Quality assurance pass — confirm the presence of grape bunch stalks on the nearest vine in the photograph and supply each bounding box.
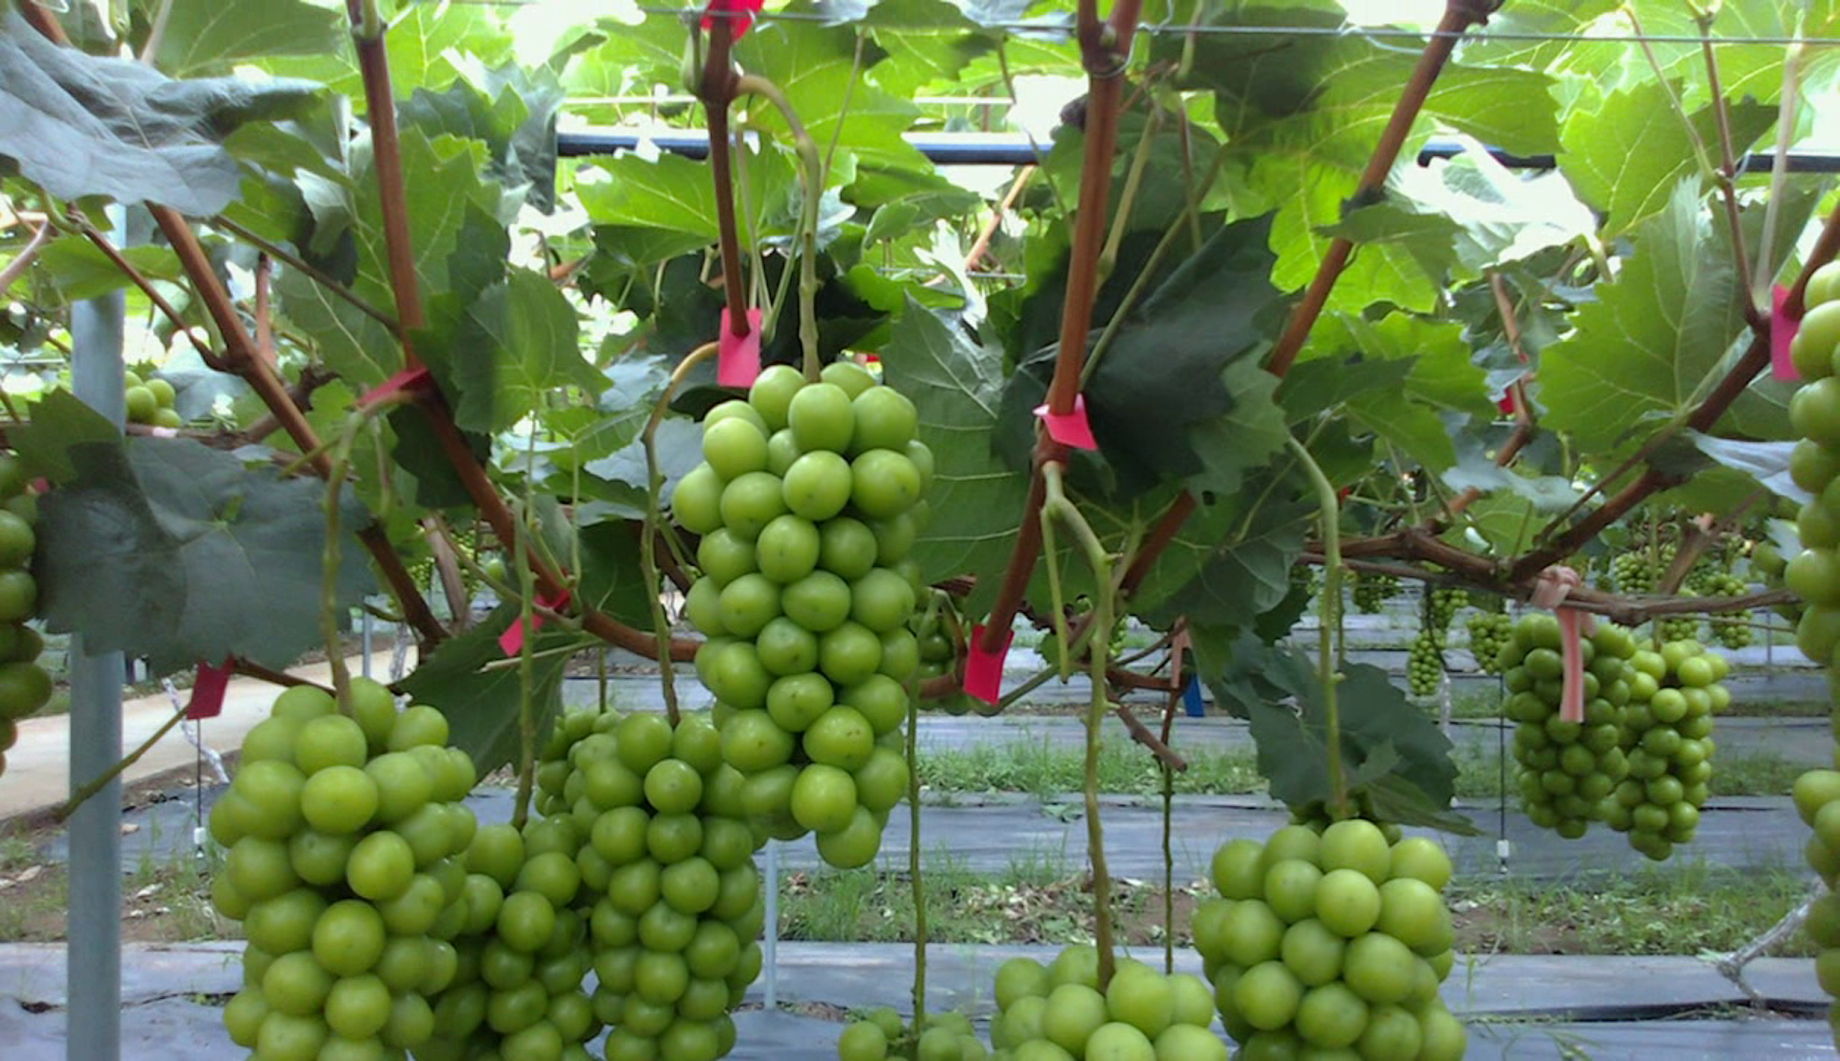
[1044,463,1116,995]
[317,389,413,718]
[1284,438,1351,821]
[733,75,821,385]
[907,591,967,1060]
[641,340,718,731]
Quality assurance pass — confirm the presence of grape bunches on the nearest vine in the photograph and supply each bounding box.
[837,1005,989,1060]
[565,710,773,1060]
[410,812,603,1060]
[989,945,1228,1060]
[1793,768,1839,1026]
[1782,261,1839,663]
[671,363,935,869]
[0,457,55,750]
[1190,818,1467,1060]
[208,676,478,1060]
